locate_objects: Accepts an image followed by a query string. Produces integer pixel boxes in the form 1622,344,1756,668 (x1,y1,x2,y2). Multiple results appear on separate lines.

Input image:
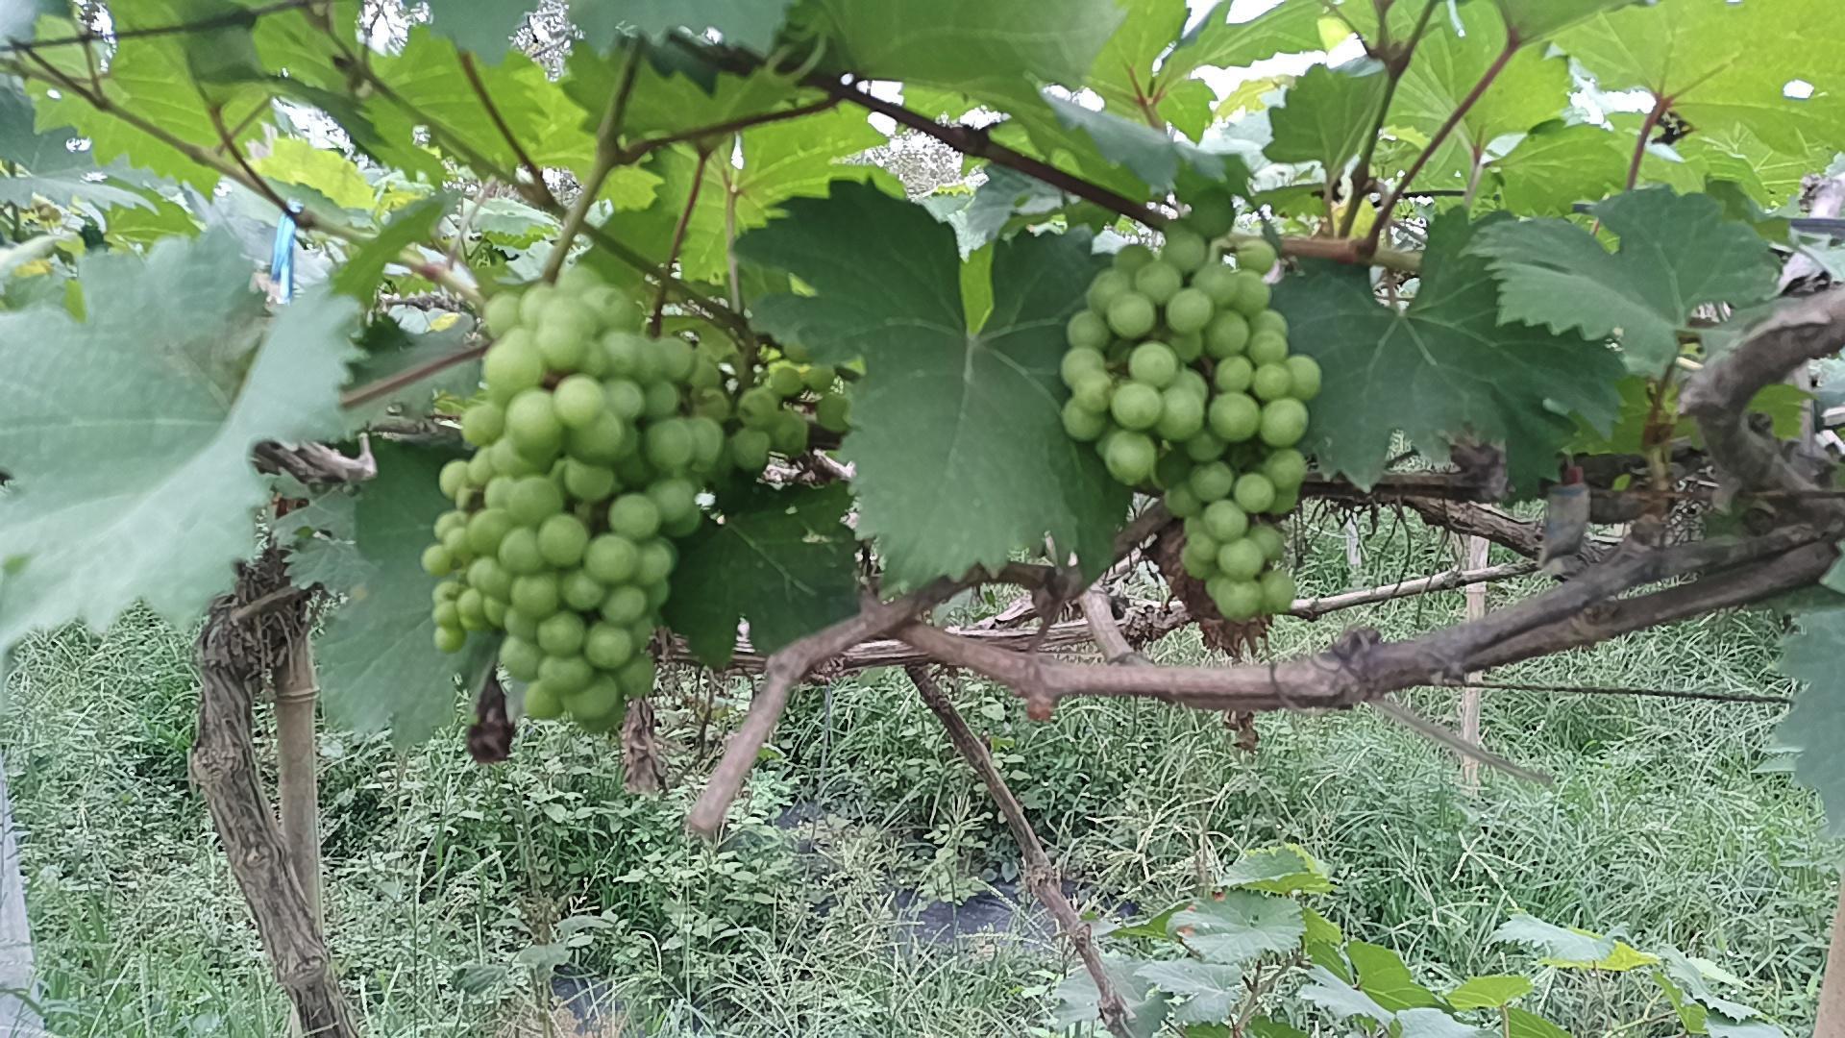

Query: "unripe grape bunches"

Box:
420,263,731,733
725,342,849,474
1061,186,1321,621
